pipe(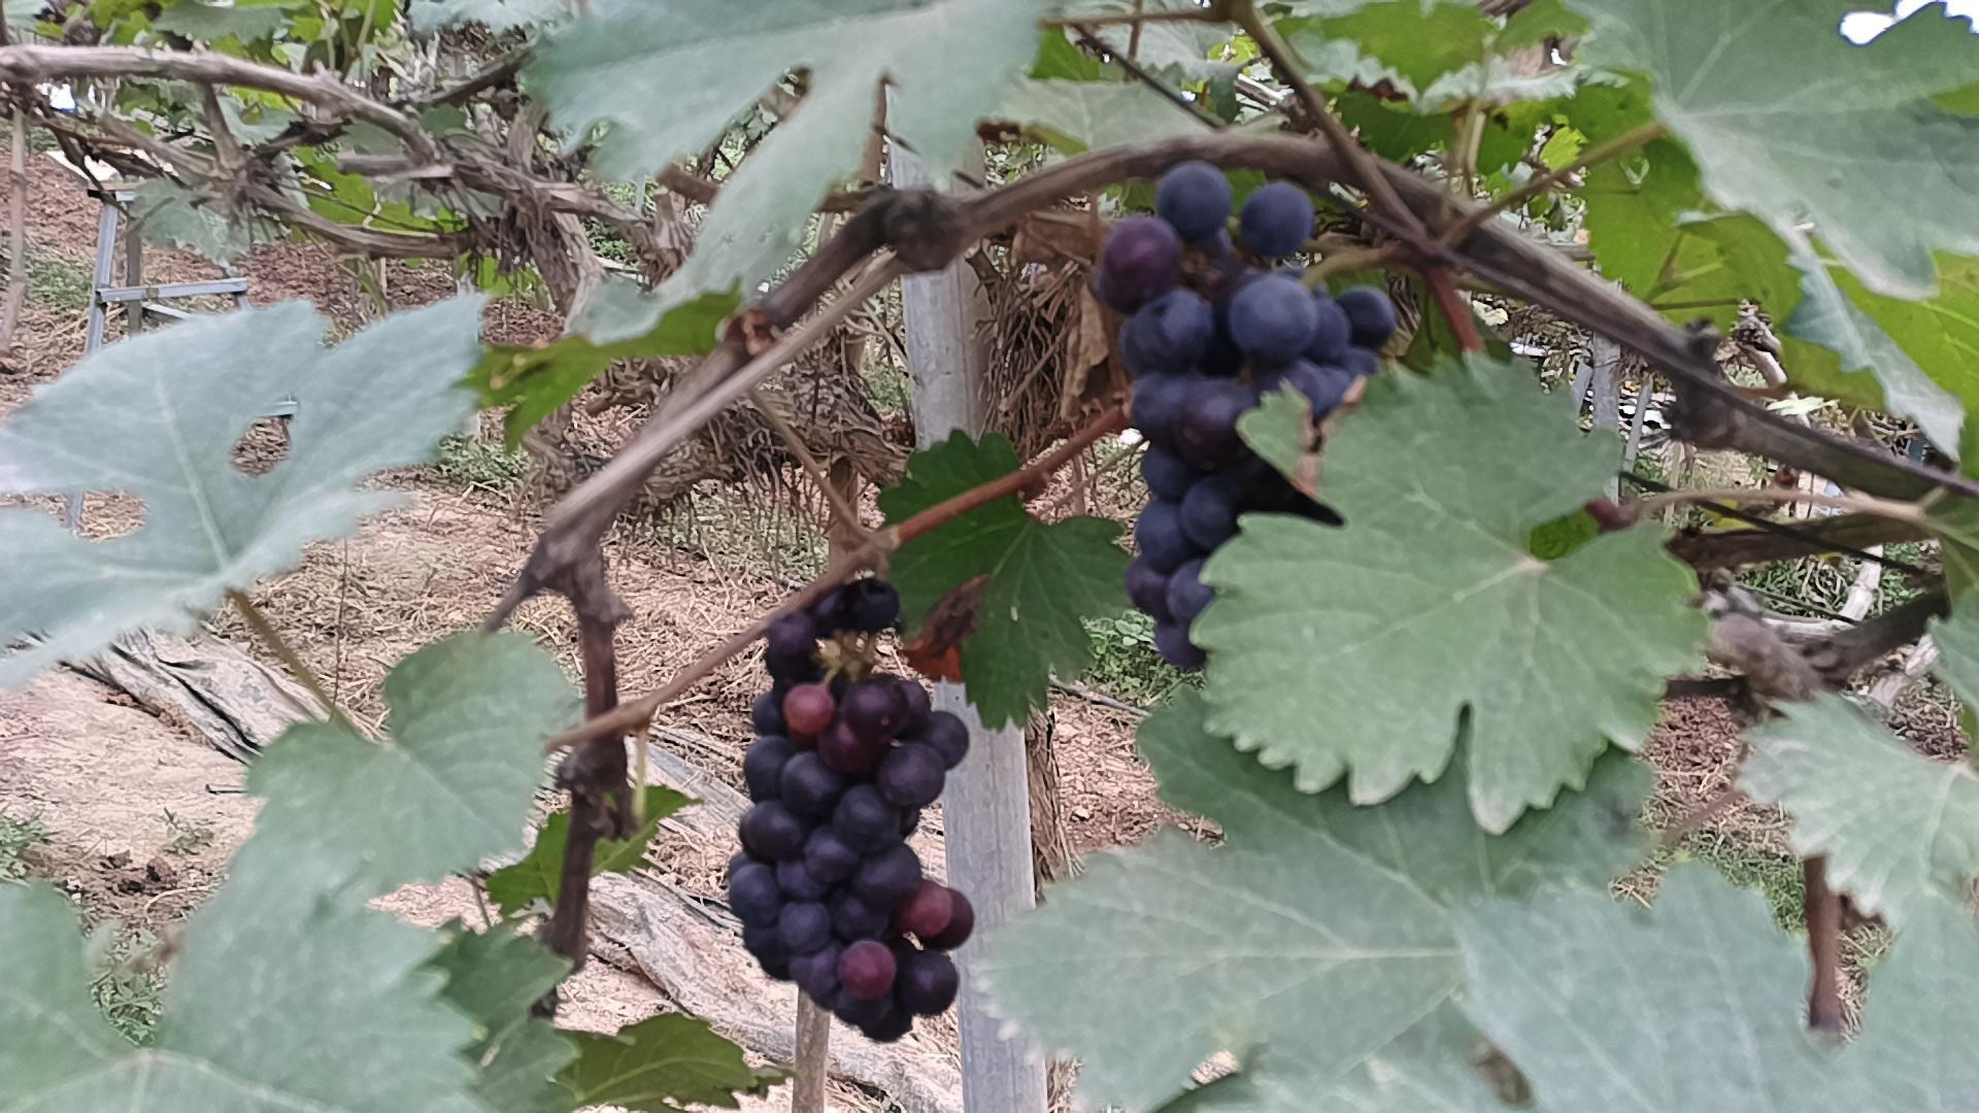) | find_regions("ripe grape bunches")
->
[1096,163,1395,668]
[729,576,973,1041]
